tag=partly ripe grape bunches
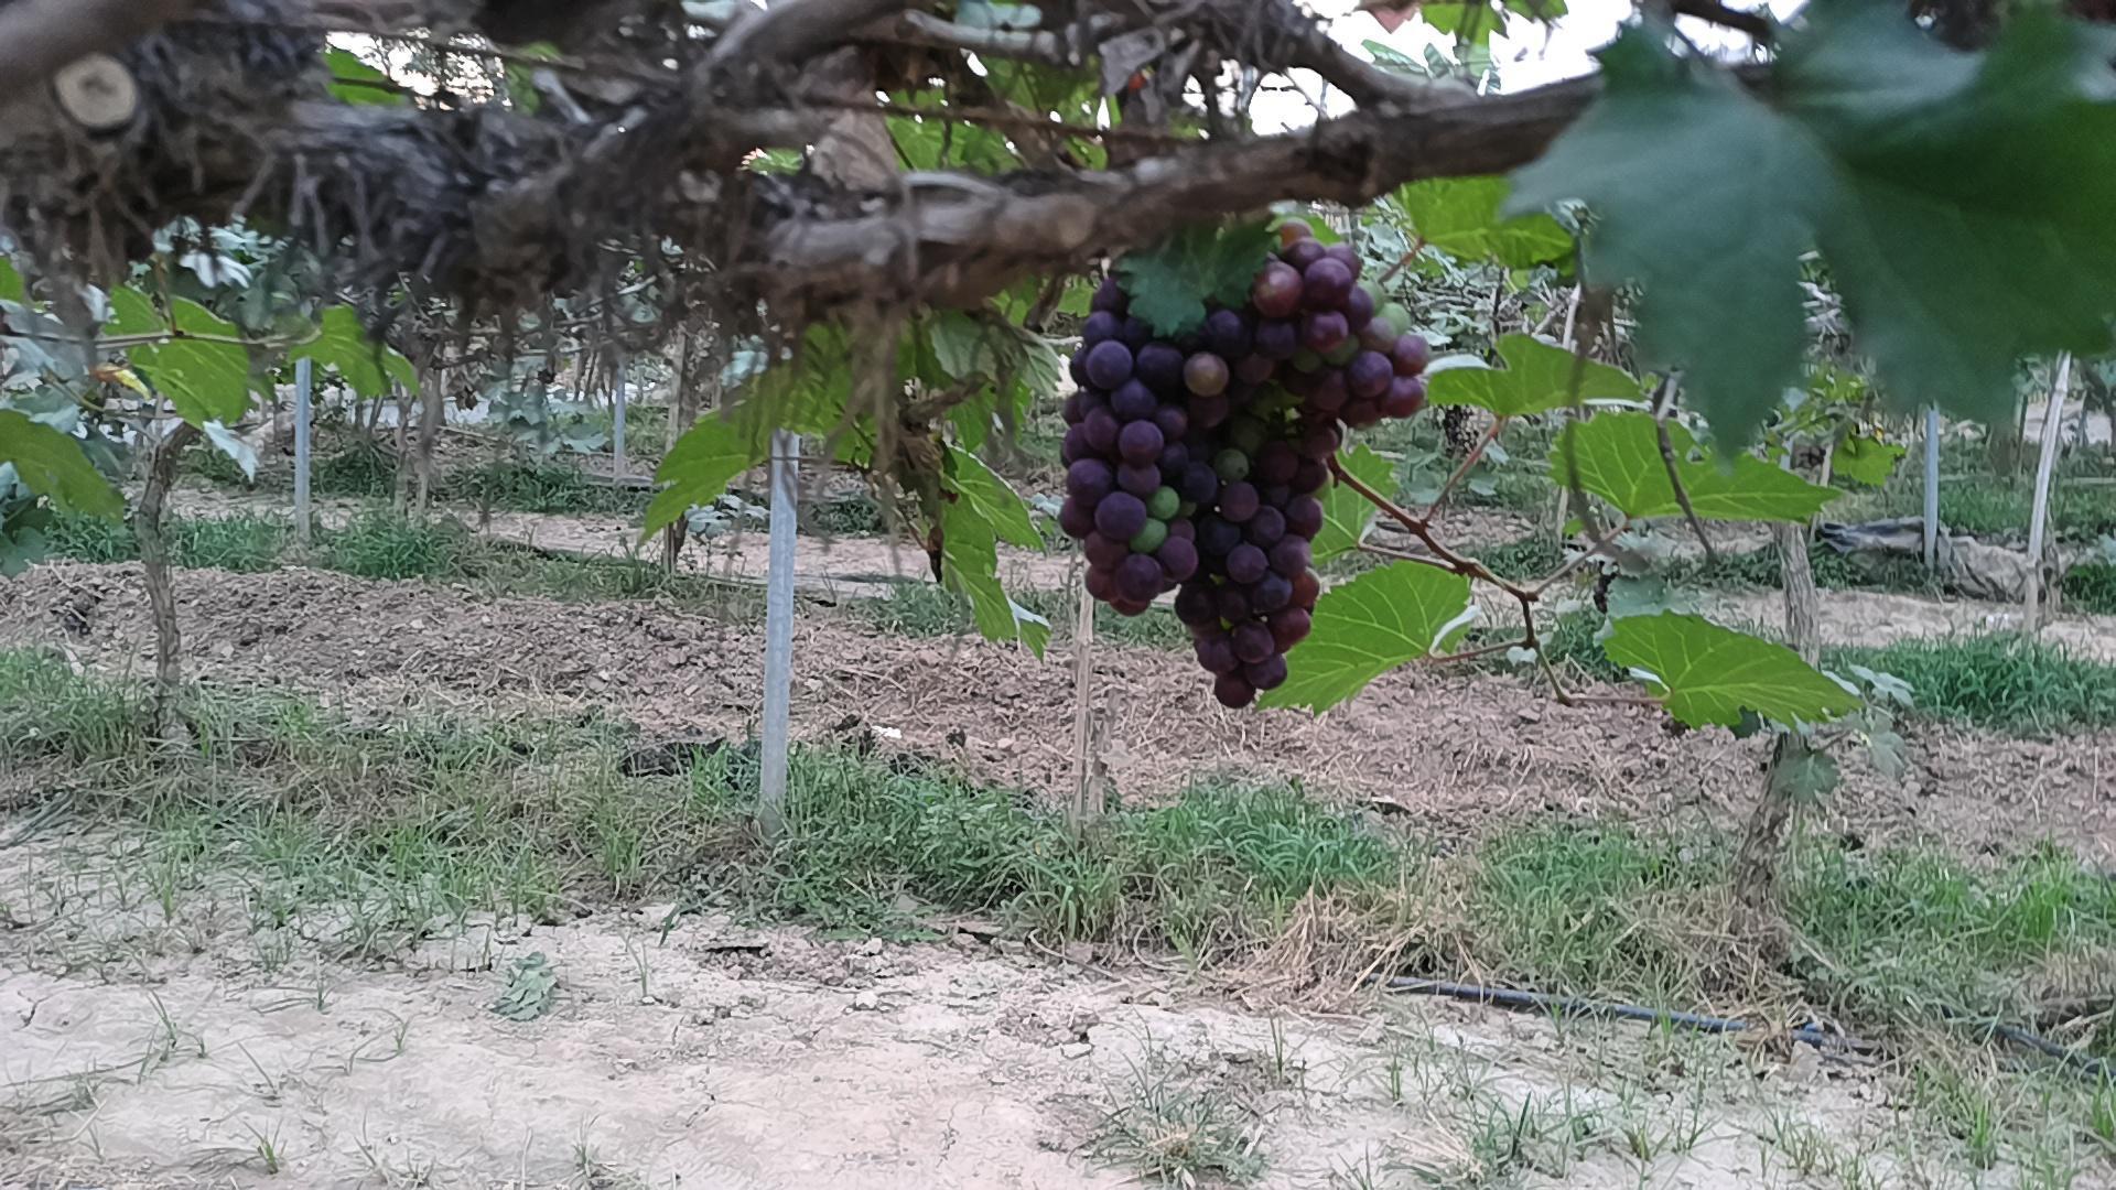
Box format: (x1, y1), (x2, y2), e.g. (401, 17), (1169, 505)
(1176, 278), (1434, 708)
(1059, 217), (1374, 617)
